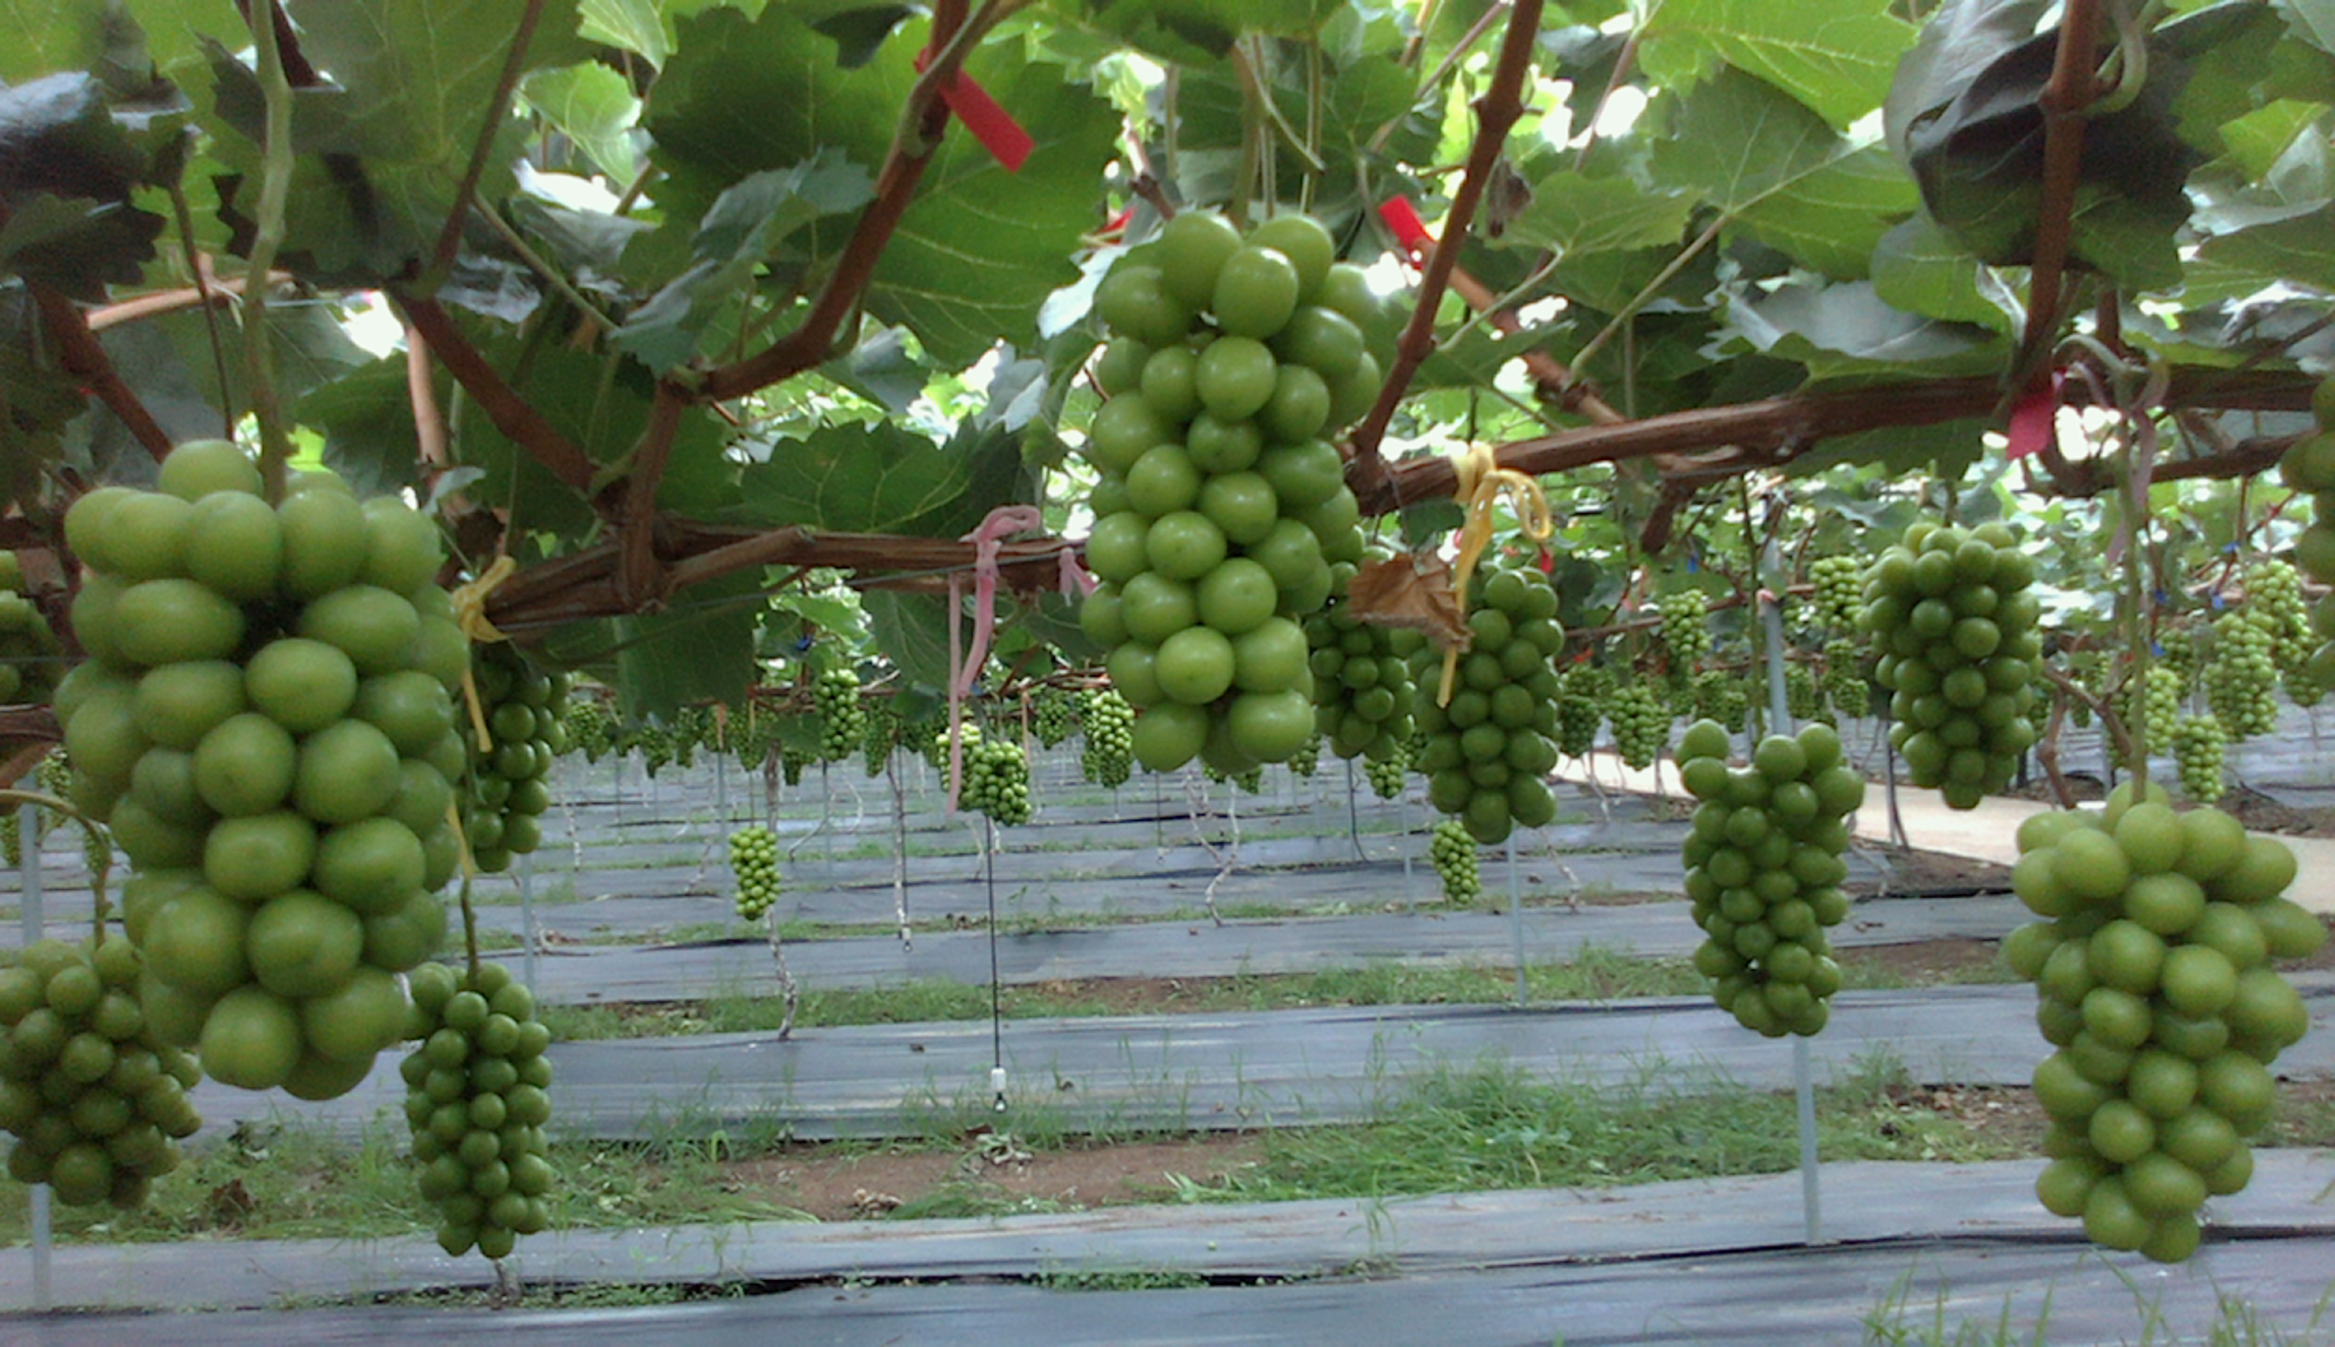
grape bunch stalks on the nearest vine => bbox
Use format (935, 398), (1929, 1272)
(245, 4), (292, 498)
(2056, 339), (2146, 799)
(1227, 37), (1327, 215)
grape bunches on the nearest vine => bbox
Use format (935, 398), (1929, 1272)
(2000, 786), (2326, 1265)
(1080, 208), (1377, 773)
(56, 434), (470, 1106)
